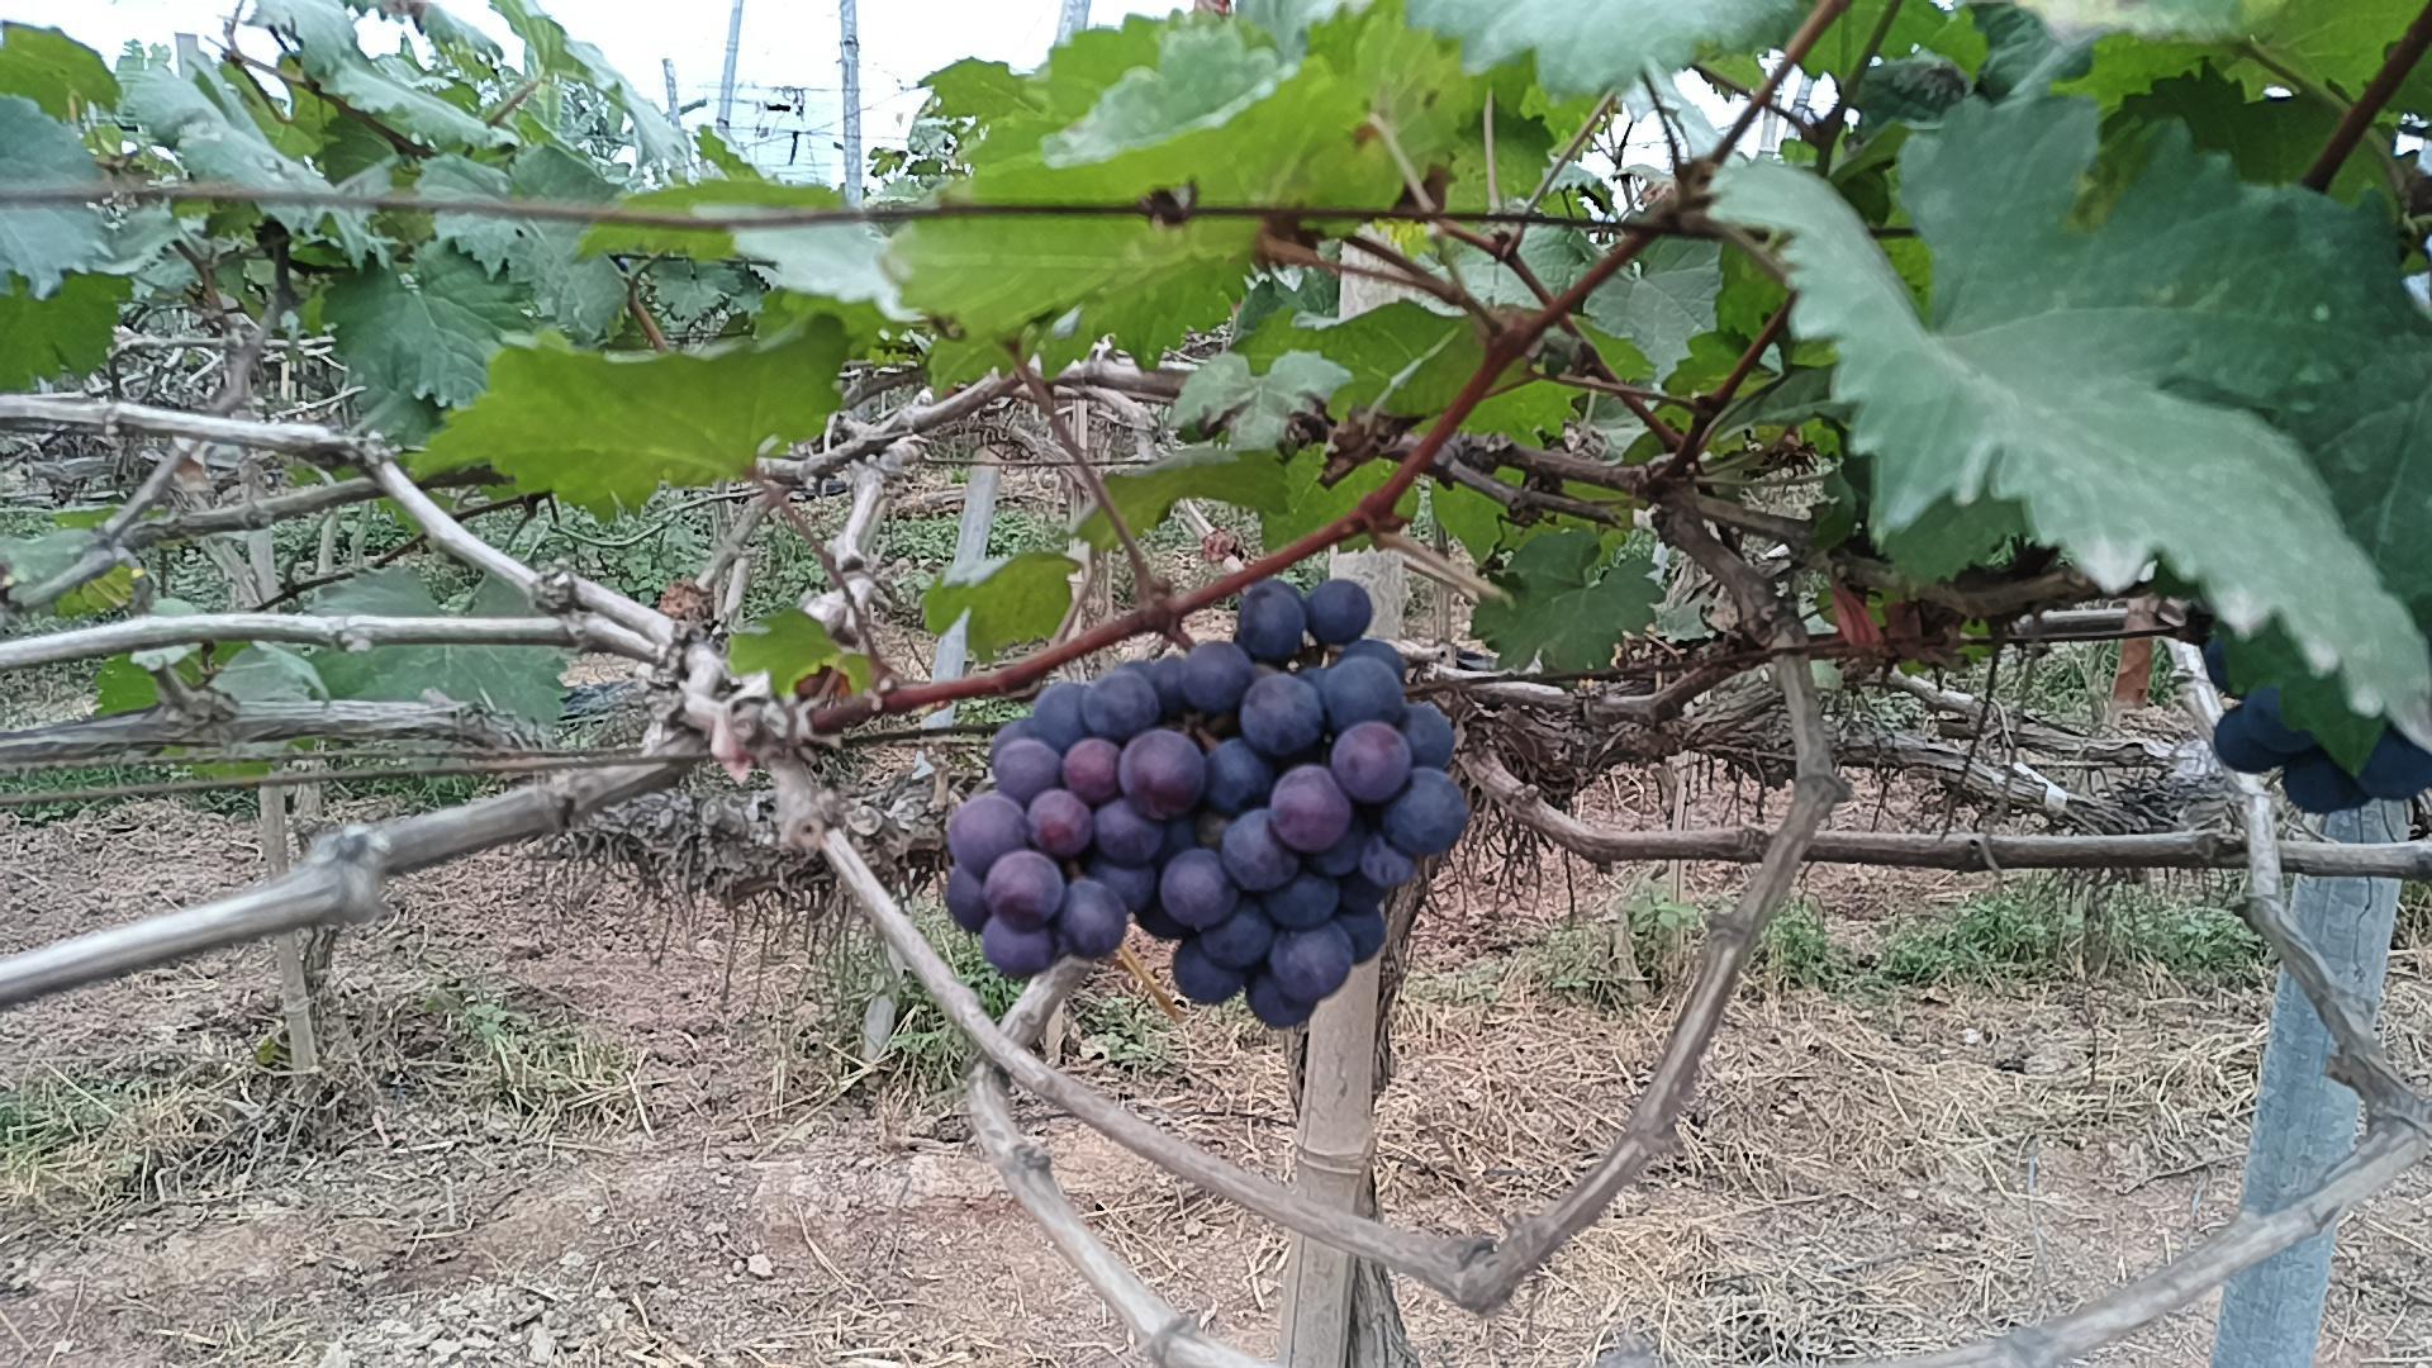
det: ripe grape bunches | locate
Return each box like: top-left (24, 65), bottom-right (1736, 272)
top-left (949, 579), bottom-right (1471, 1031)
top-left (2203, 632), bottom-right (2431, 813)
